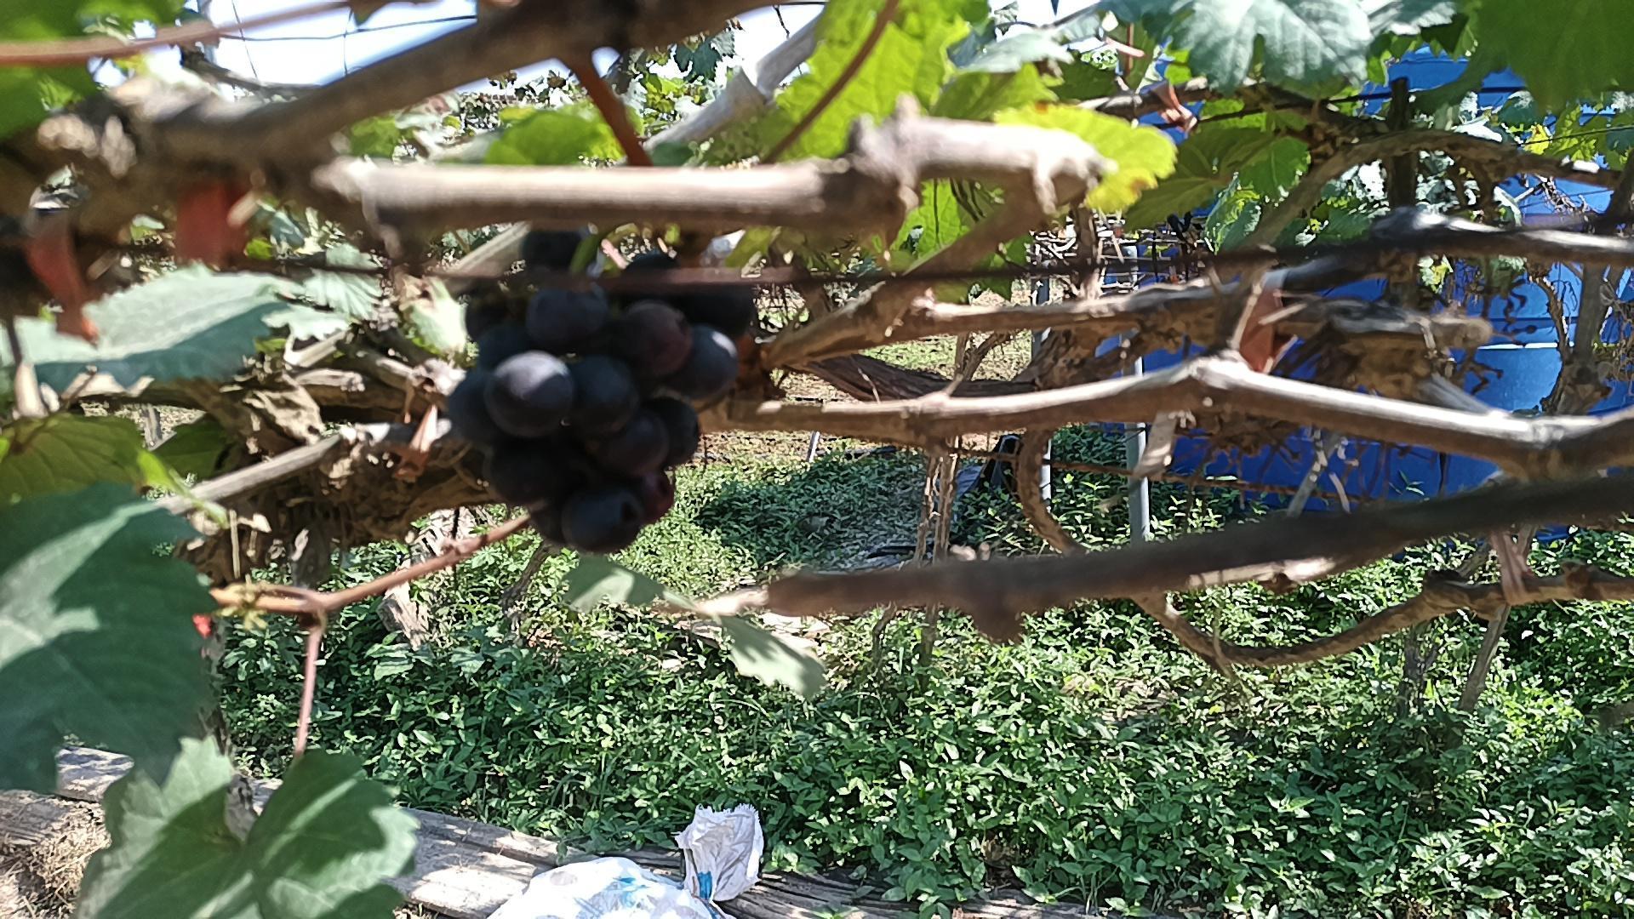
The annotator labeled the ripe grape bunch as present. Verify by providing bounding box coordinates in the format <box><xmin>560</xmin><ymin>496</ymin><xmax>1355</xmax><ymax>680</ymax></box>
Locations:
<box><xmin>448</xmin><ymin>284</ymin><xmax>756</xmax><ymax>552</ymax></box>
